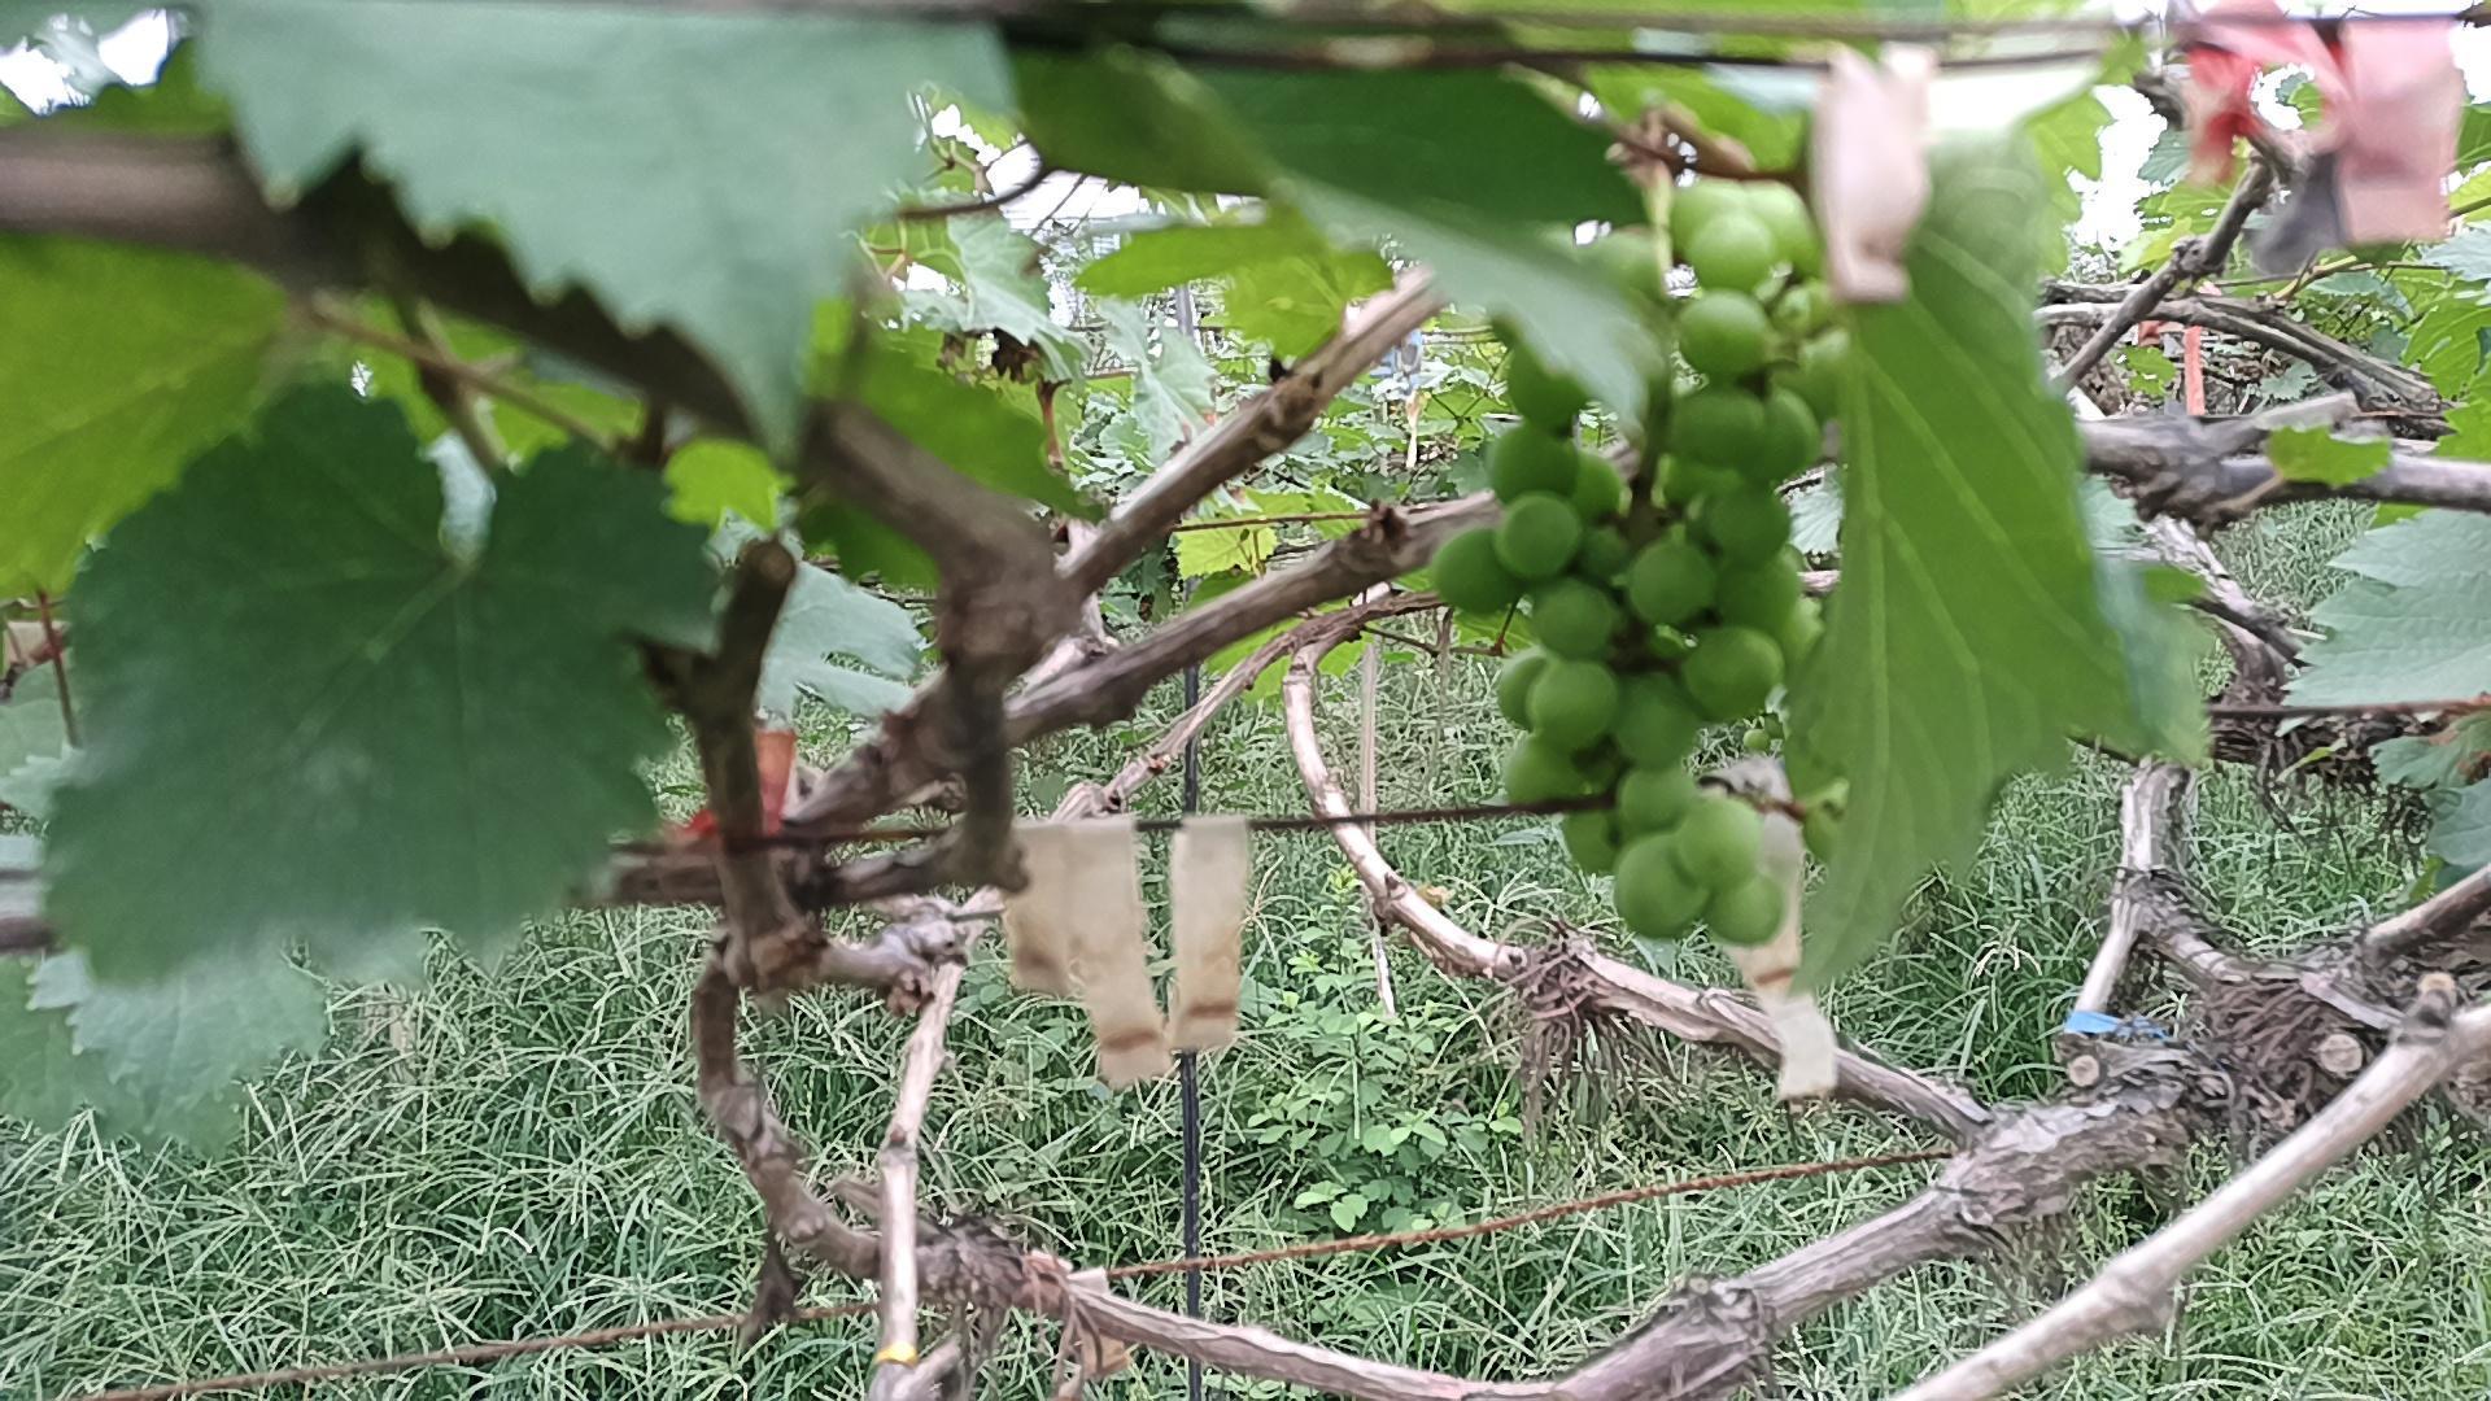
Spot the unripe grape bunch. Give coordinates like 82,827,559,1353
1431,178,1854,944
